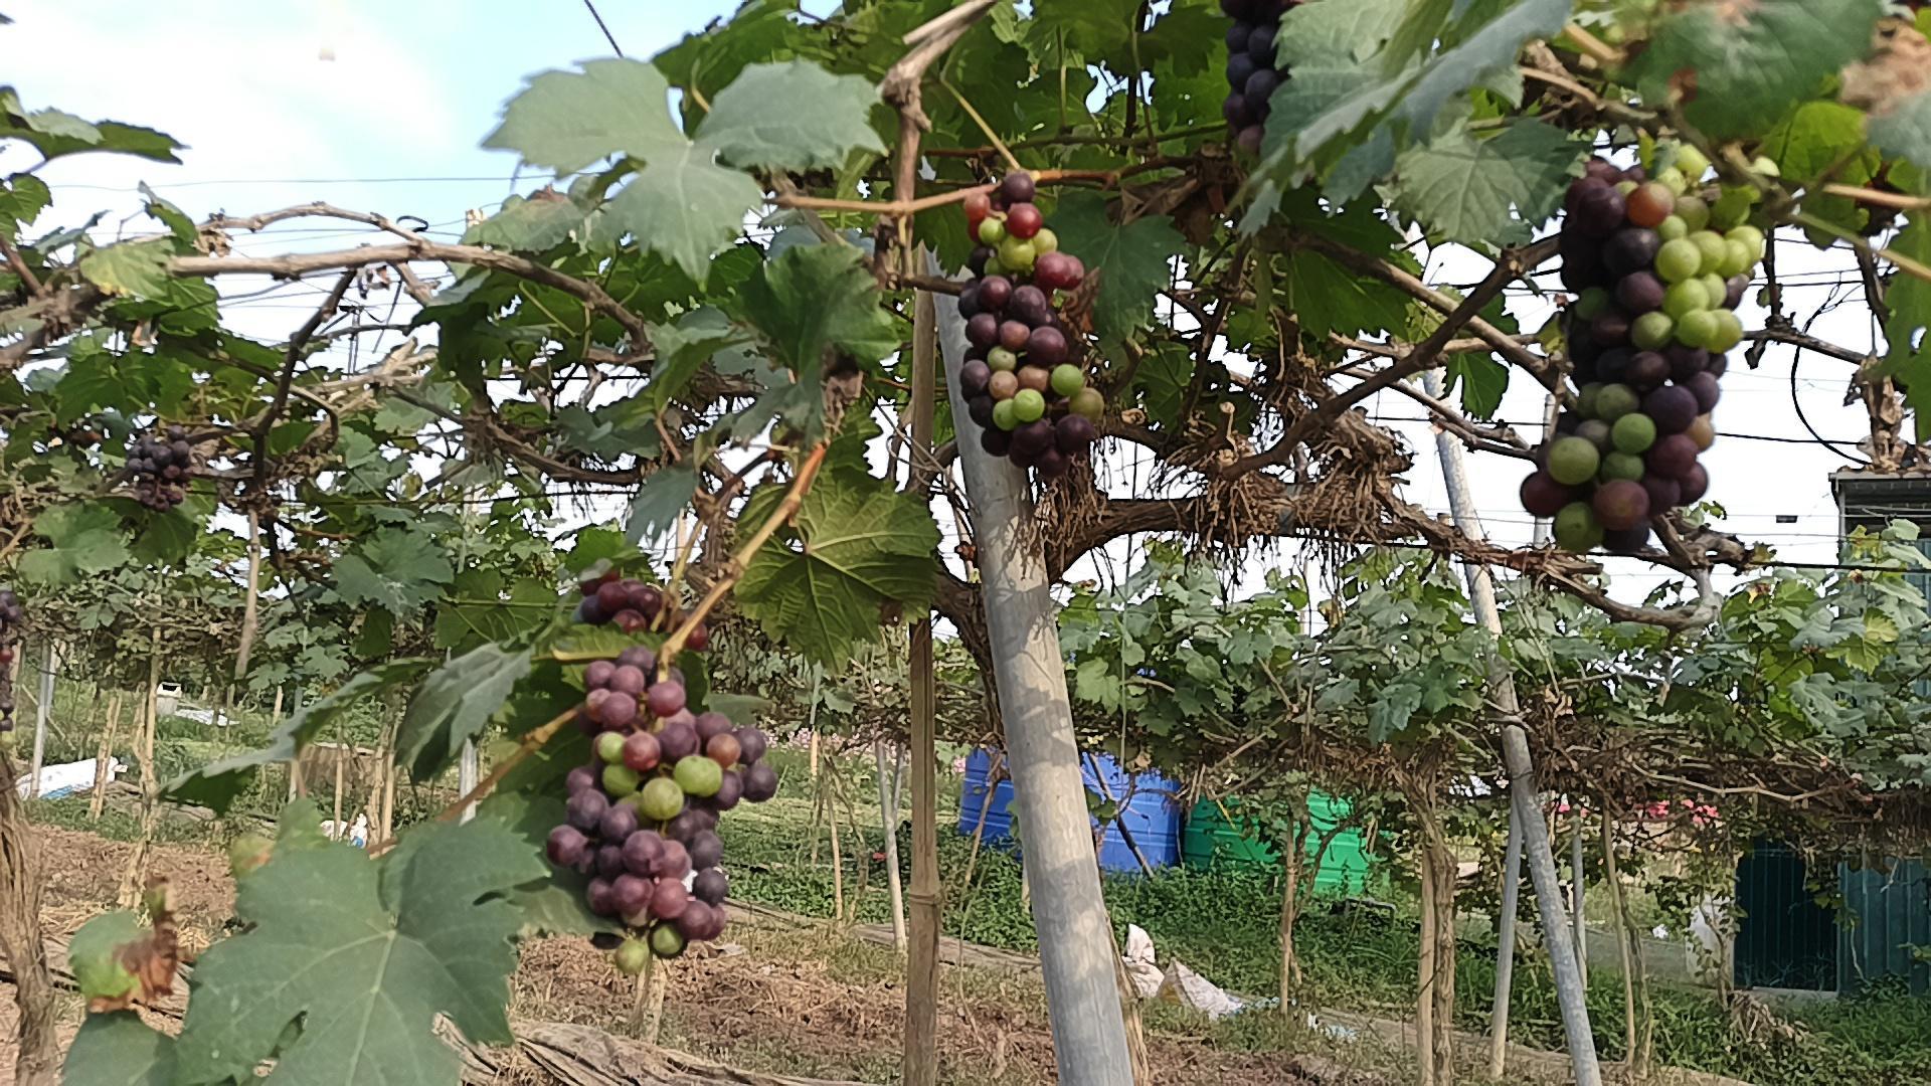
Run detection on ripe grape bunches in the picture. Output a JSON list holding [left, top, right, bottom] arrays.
[[121, 426, 195, 511], [578, 572, 708, 649], [1220, 0, 1298, 135]]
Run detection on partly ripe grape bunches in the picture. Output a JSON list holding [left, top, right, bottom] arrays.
[[1520, 138, 1796, 552], [547, 647, 777, 971], [958, 173, 1102, 475]]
